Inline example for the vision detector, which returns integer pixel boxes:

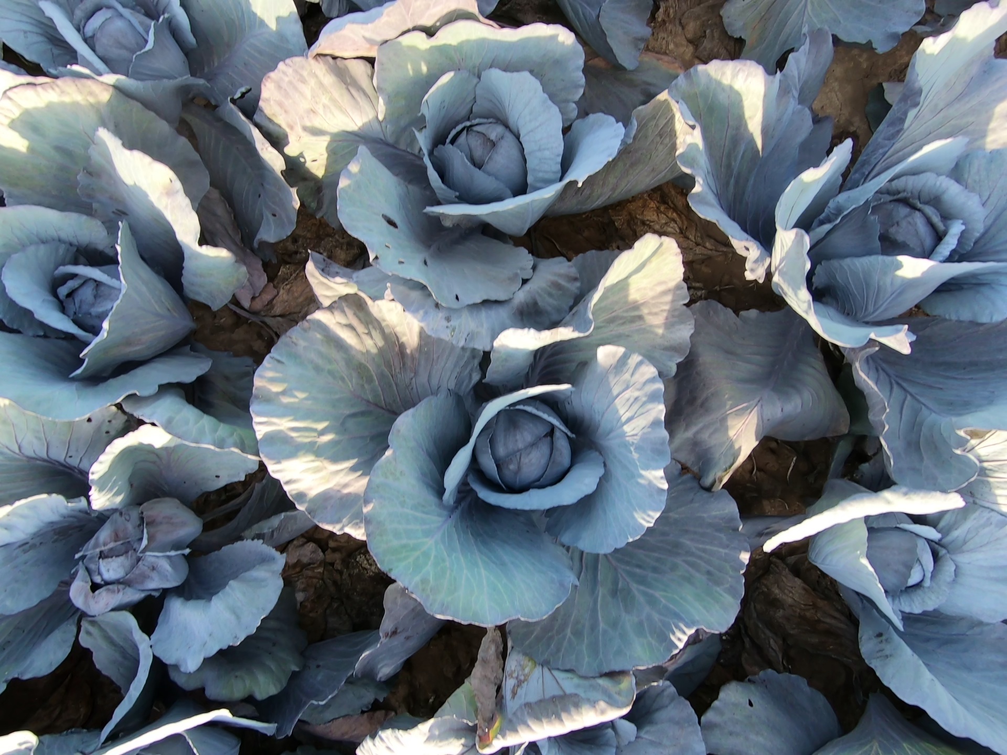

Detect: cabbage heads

[68,267,163,340]
[444,122,524,202]
[853,524,931,592]
[477,396,570,491]
[82,3,182,98]
[85,517,165,586]
[838,195,937,289]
